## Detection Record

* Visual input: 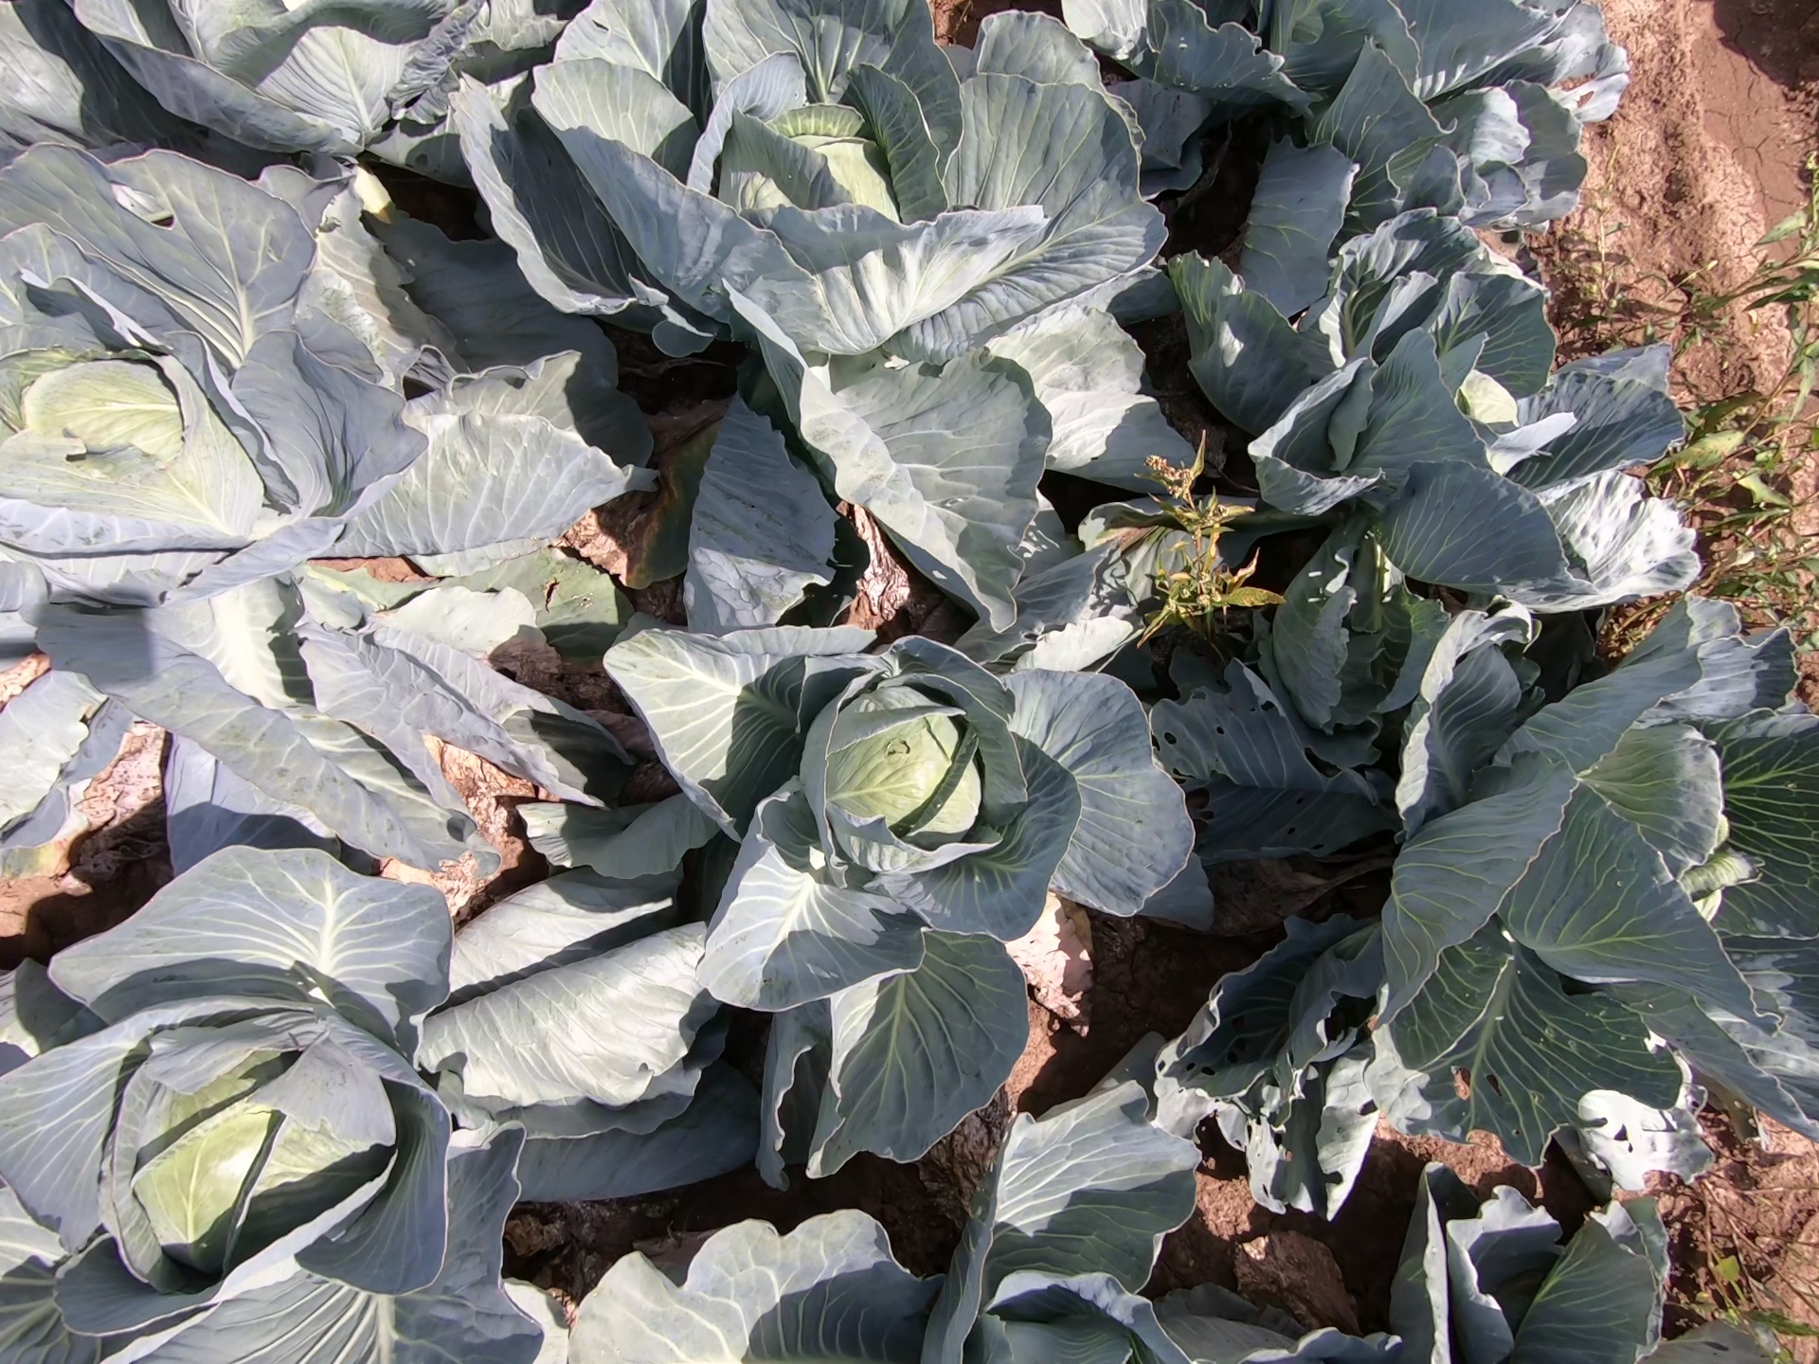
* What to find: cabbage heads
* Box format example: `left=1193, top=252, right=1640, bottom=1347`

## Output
left=1403, top=364, right=1523, bottom=478
left=2, top=357, right=265, bottom=574
left=176, top=3, right=420, bottom=128
left=1522, top=758, right=1729, bottom=975
left=120, top=1021, right=391, bottom=1278
left=810, top=691, right=980, bottom=858
left=736, top=117, right=905, bottom=257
